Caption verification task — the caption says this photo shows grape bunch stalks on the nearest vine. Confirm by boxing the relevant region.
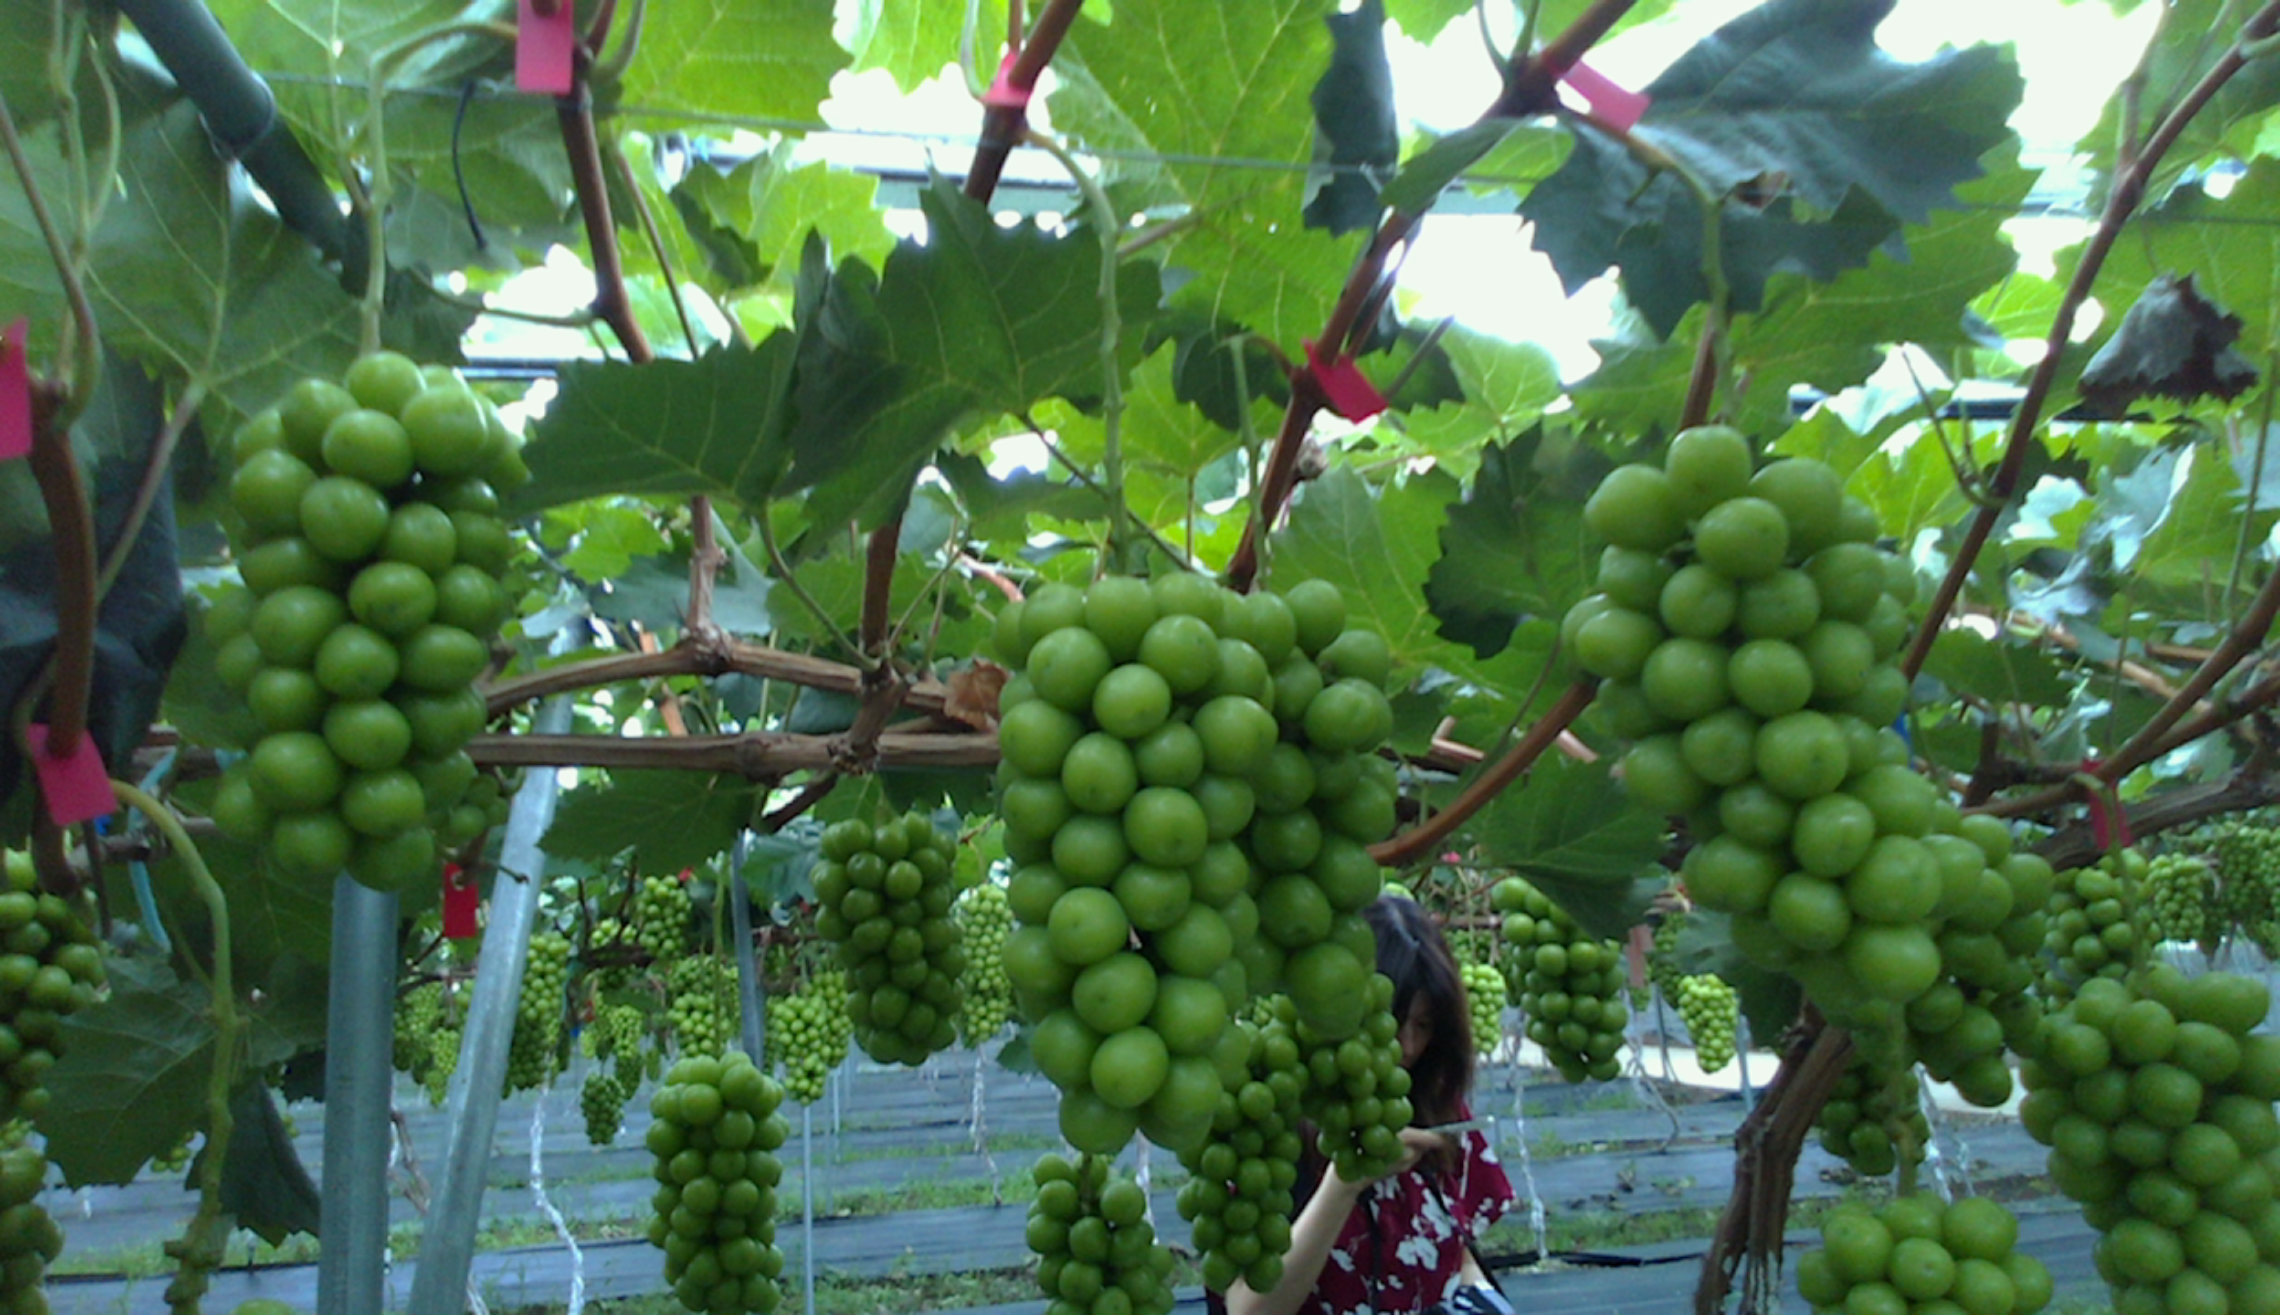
[2075,765,2152,984]
[1230,331,1297,594]
[1032,113,1142,561]
[1542,95,1736,427]
[360,15,513,358]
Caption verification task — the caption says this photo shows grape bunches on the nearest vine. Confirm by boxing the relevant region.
[1235,575,1399,1036]
[2019,968,2276,1313]
[203,354,524,891]
[994,568,1295,1160]
[1560,422,1988,1026]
